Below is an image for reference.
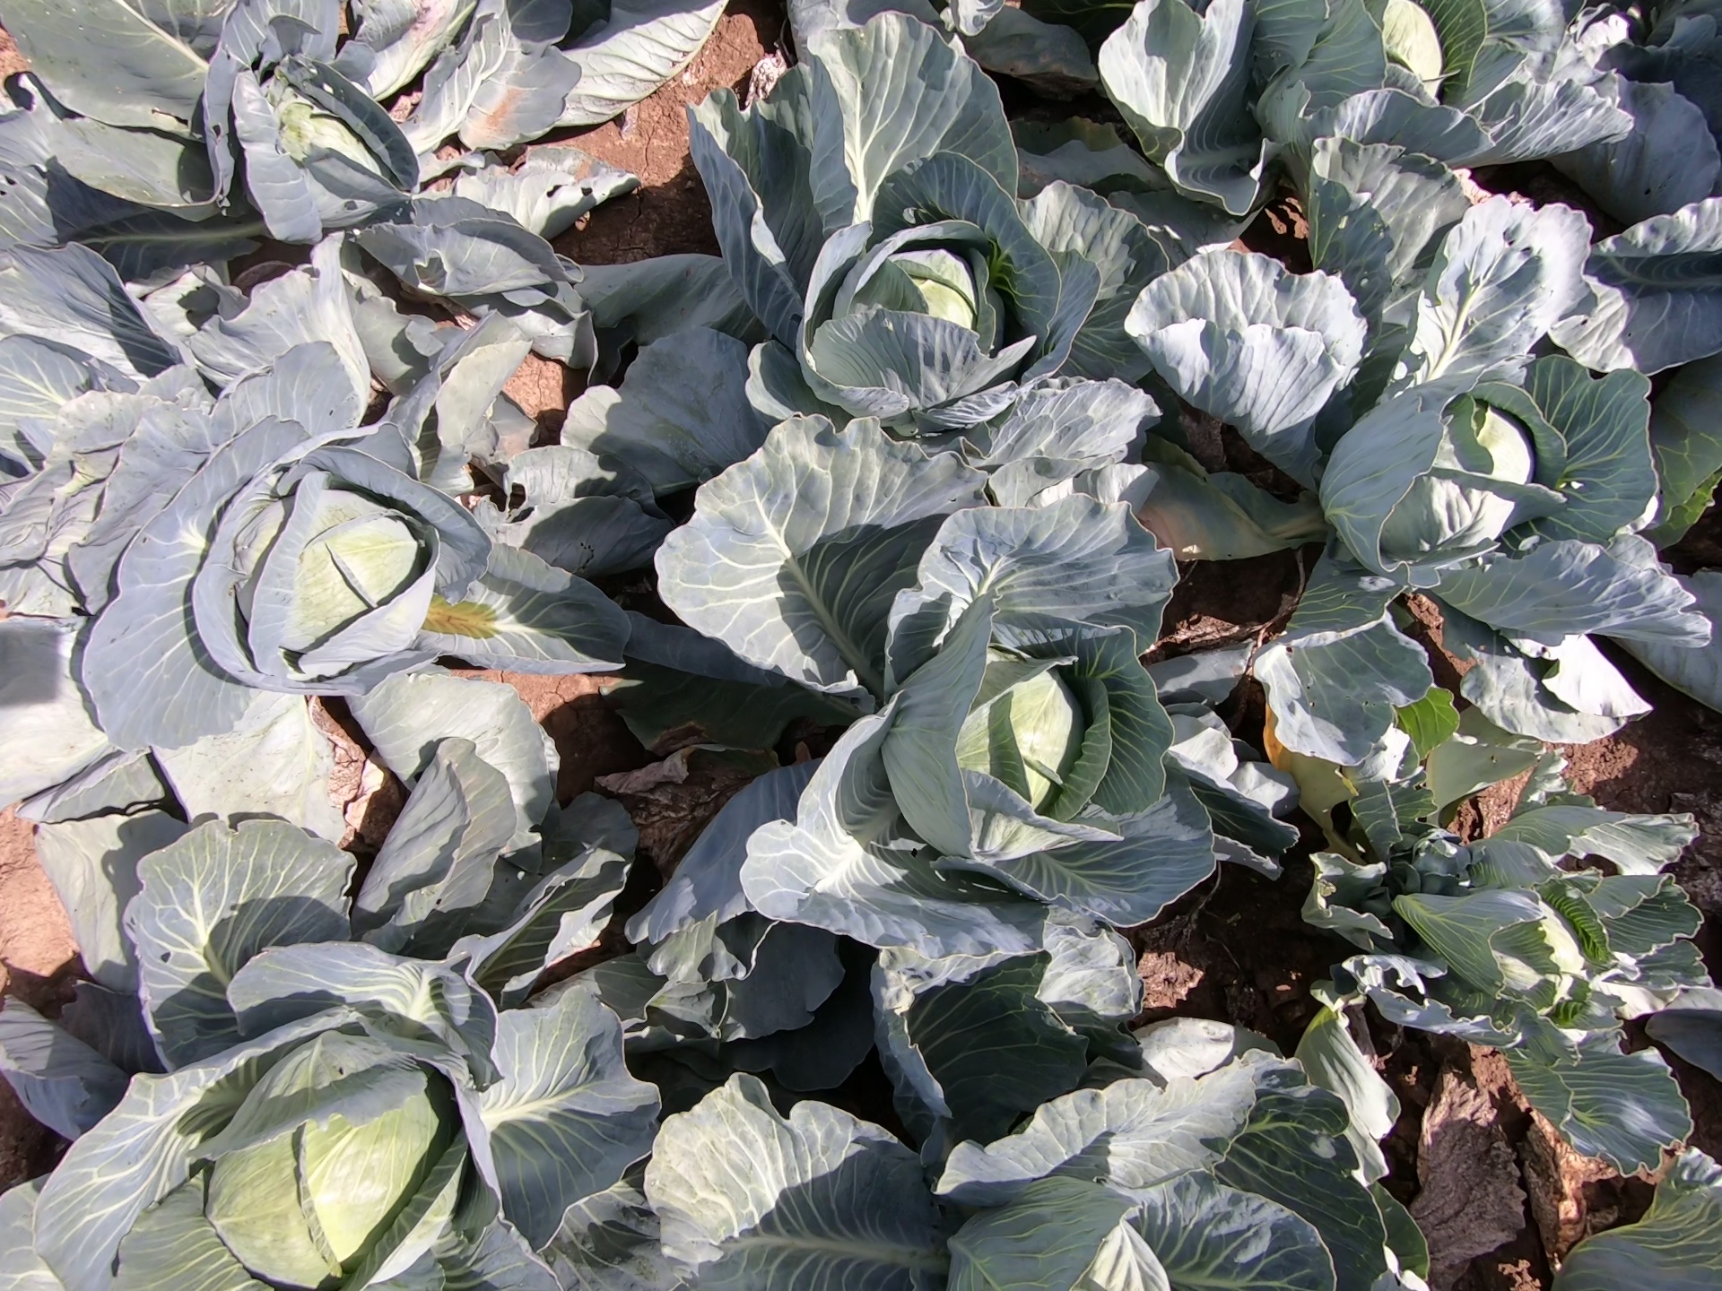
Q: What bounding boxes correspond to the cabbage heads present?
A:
[226,482,427,667]
[200,1023,466,1287]
[1341,391,1544,557]
[948,1193,1170,1285]
[828,242,1006,398]
[883,637,1096,856]
[1448,888,1590,1021]
[245,65,397,215]
[1285,0,1443,175]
